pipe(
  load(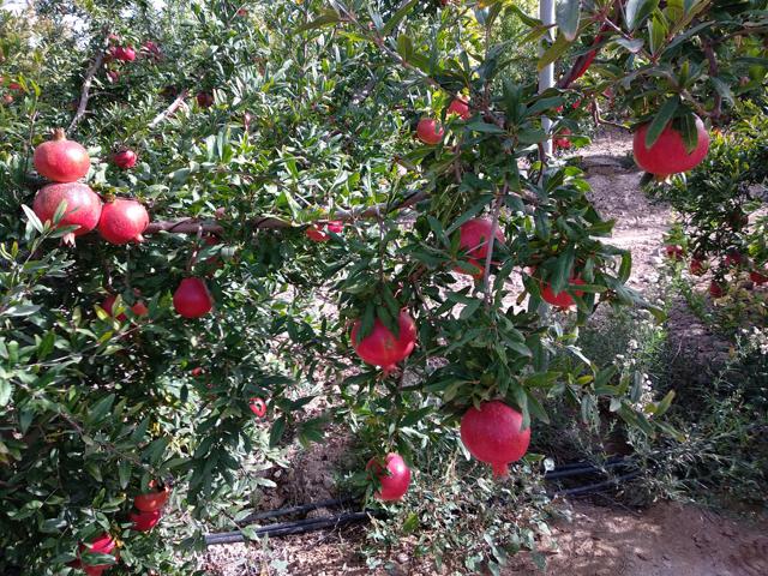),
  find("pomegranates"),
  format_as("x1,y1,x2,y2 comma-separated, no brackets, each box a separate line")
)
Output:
128,510,161,530
172,277,214,319
460,401,530,479
540,277,586,312
446,98,469,120
133,488,173,512
115,46,136,62
32,182,103,247
366,451,410,500
416,116,445,145
32,126,91,182
83,533,120,576
452,218,504,280
248,398,266,418
113,150,138,169
349,312,418,376
96,197,150,246
631,114,709,186
305,220,343,241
